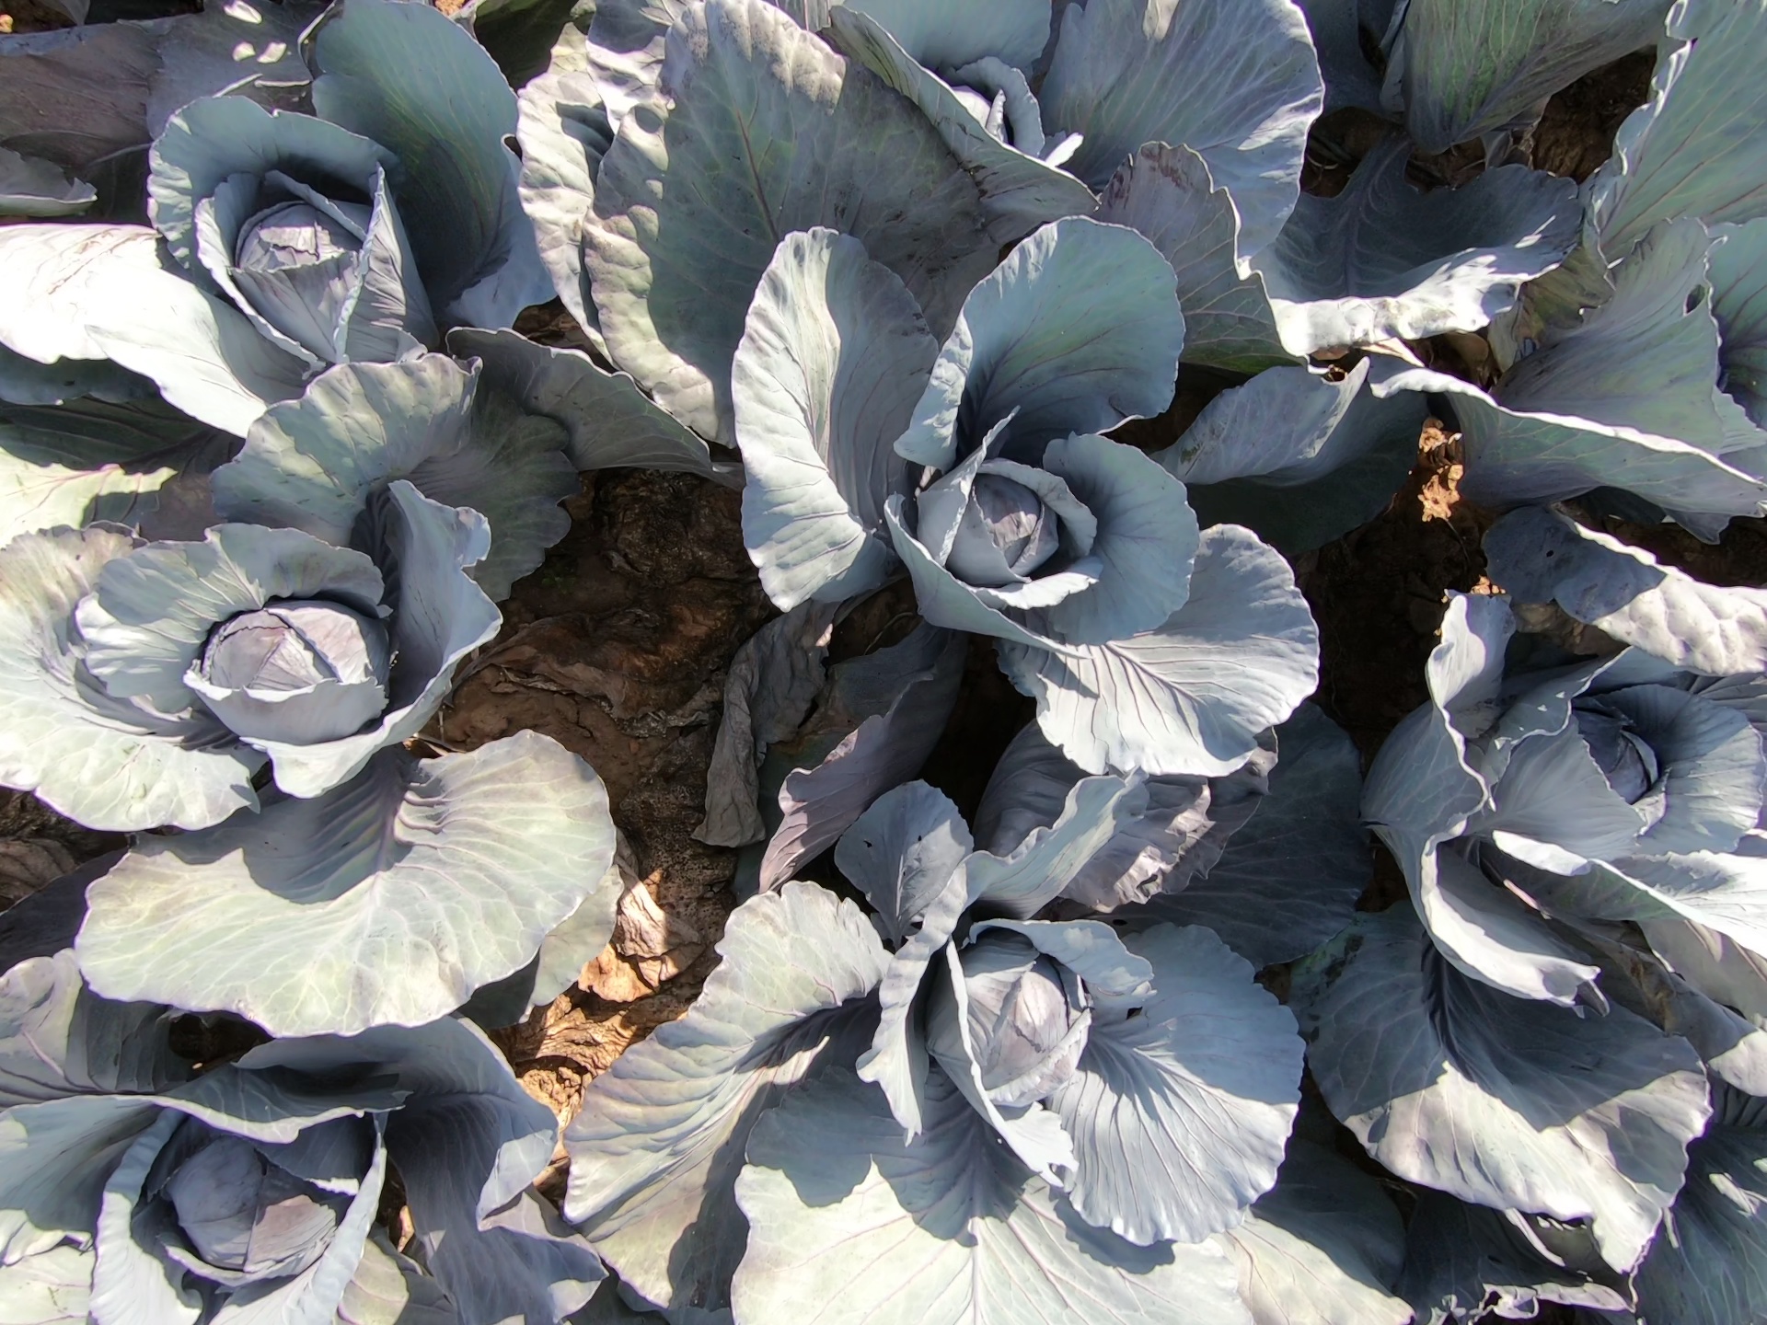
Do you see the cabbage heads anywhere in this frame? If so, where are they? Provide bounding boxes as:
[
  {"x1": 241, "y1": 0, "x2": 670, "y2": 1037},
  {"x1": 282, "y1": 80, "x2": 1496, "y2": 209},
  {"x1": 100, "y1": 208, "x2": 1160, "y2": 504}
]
[
  {"x1": 202, "y1": 600, "x2": 384, "y2": 742},
  {"x1": 939, "y1": 939, "x2": 1089, "y2": 1103},
  {"x1": 245, "y1": 202, "x2": 392, "y2": 348},
  {"x1": 948, "y1": 464, "x2": 1051, "y2": 577},
  {"x1": 165, "y1": 1085, "x2": 356, "y2": 1283},
  {"x1": 1504, "y1": 724, "x2": 1657, "y2": 848},
  {"x1": 895, "y1": 78, "x2": 1011, "y2": 194}
]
